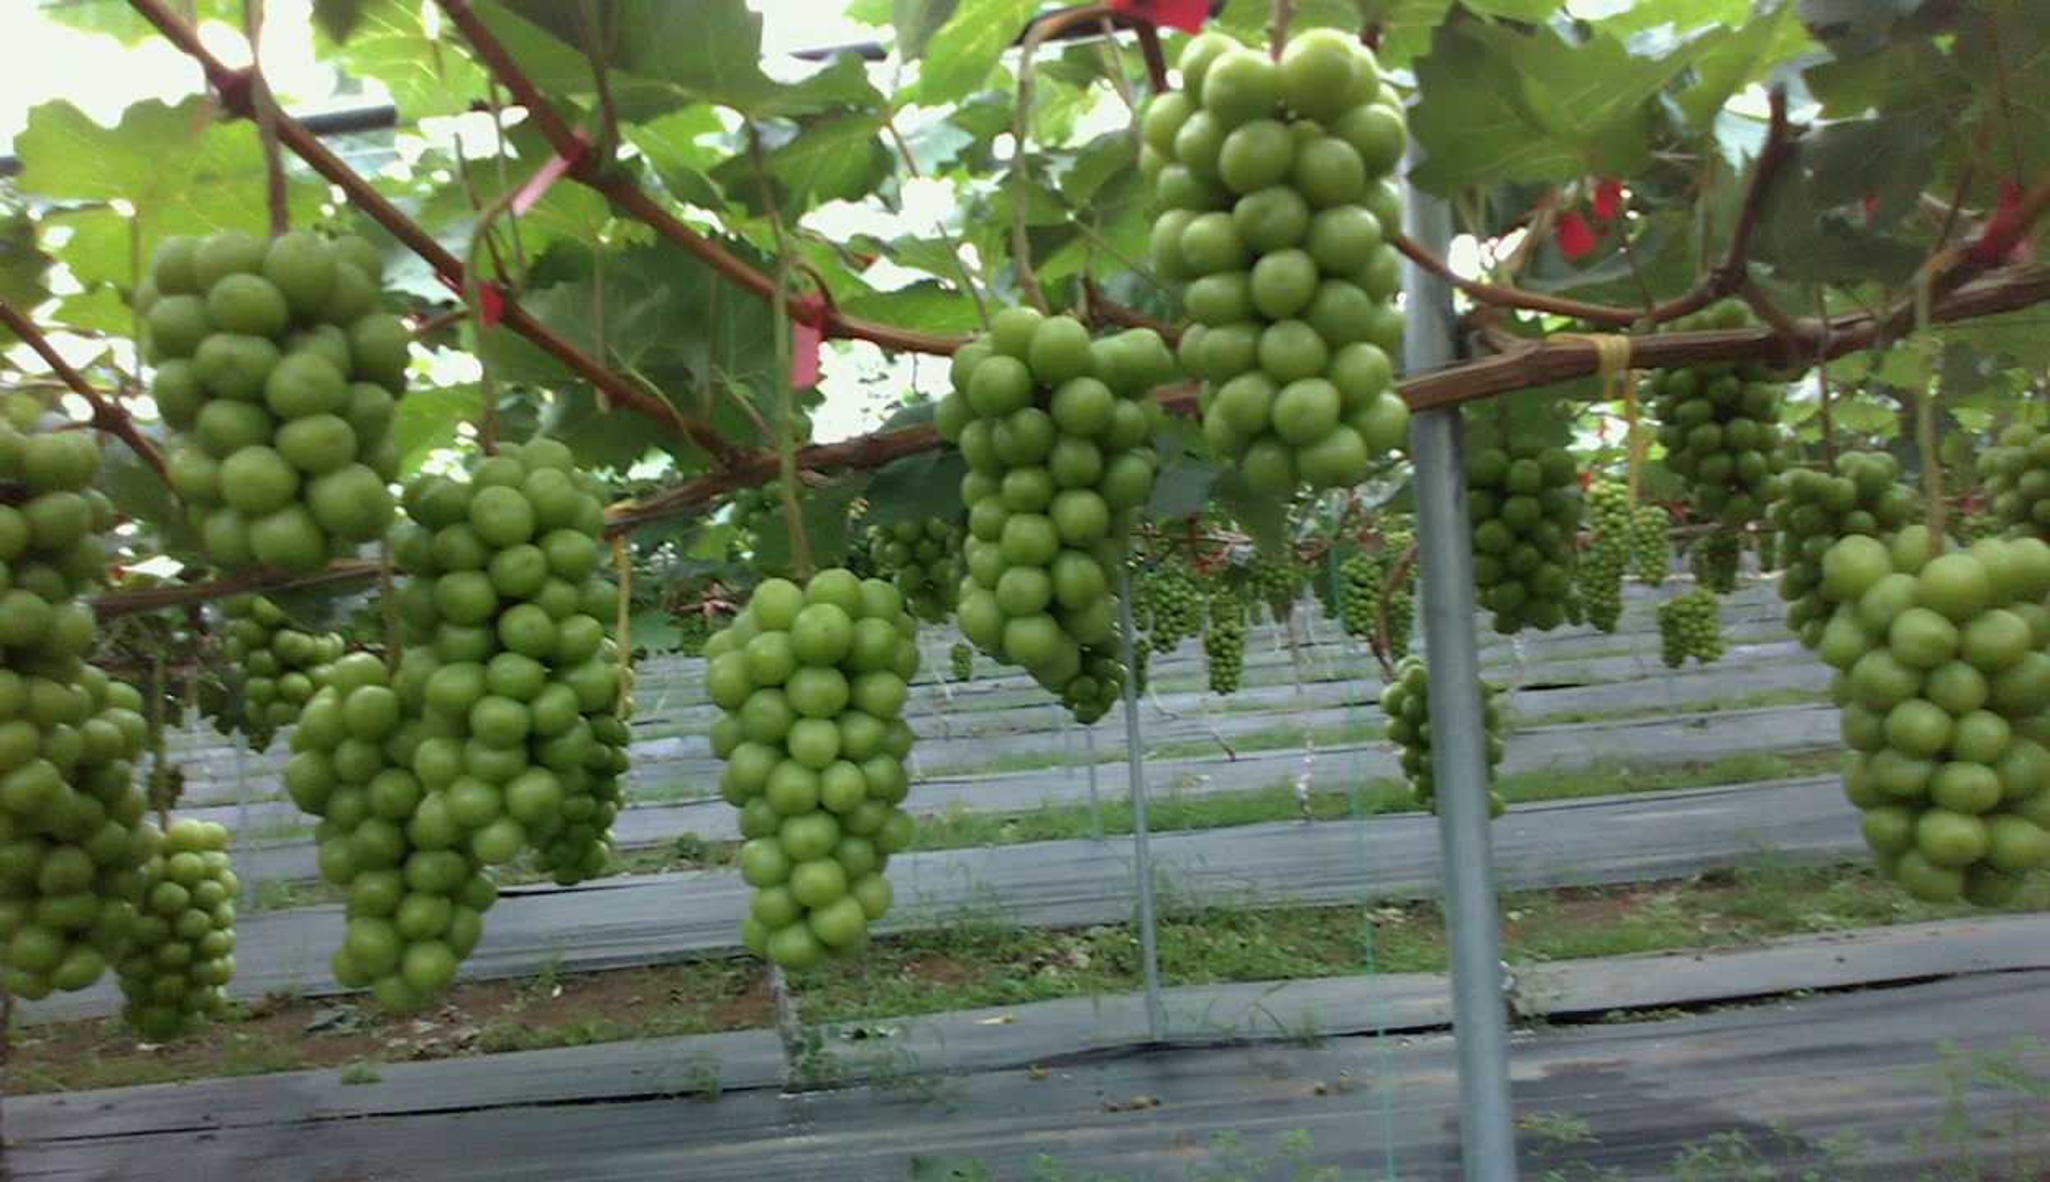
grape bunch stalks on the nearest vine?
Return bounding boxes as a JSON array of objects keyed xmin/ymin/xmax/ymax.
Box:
[
  {"xmin": 772, "ymin": 256, "xmax": 838, "ymax": 583},
  {"xmin": 463, "ymin": 181, "xmax": 526, "ymax": 453},
  {"xmin": 1014, "ymin": 2, "xmax": 1125, "ymax": 314},
  {"xmin": 243, "ymin": 0, "xmax": 287, "ymax": 236},
  {"xmin": 1914, "ymin": 236, "xmax": 1971, "ymax": 557}
]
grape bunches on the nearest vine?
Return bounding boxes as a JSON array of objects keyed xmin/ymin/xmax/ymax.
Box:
[
  {"xmin": 0, "ymin": 683, "xmax": 158, "ymax": 1001},
  {"xmin": 289, "ymin": 650, "xmax": 496, "ymax": 1008},
  {"xmin": 393, "ymin": 440, "xmax": 621, "ymax": 868},
  {"xmin": 705, "ymin": 570, "xmax": 920, "ymax": 969},
  {"xmin": 935, "ymin": 304, "xmax": 1173, "ymax": 689},
  {"xmin": 1820, "ymin": 525, "xmax": 2048, "ymax": 908},
  {"xmin": 135, "ymin": 230, "xmax": 411, "ymax": 576},
  {"xmin": 0, "ymin": 412, "xmax": 118, "ymax": 834},
  {"xmin": 1143, "ymin": 26, "xmax": 1411, "ymax": 497}
]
